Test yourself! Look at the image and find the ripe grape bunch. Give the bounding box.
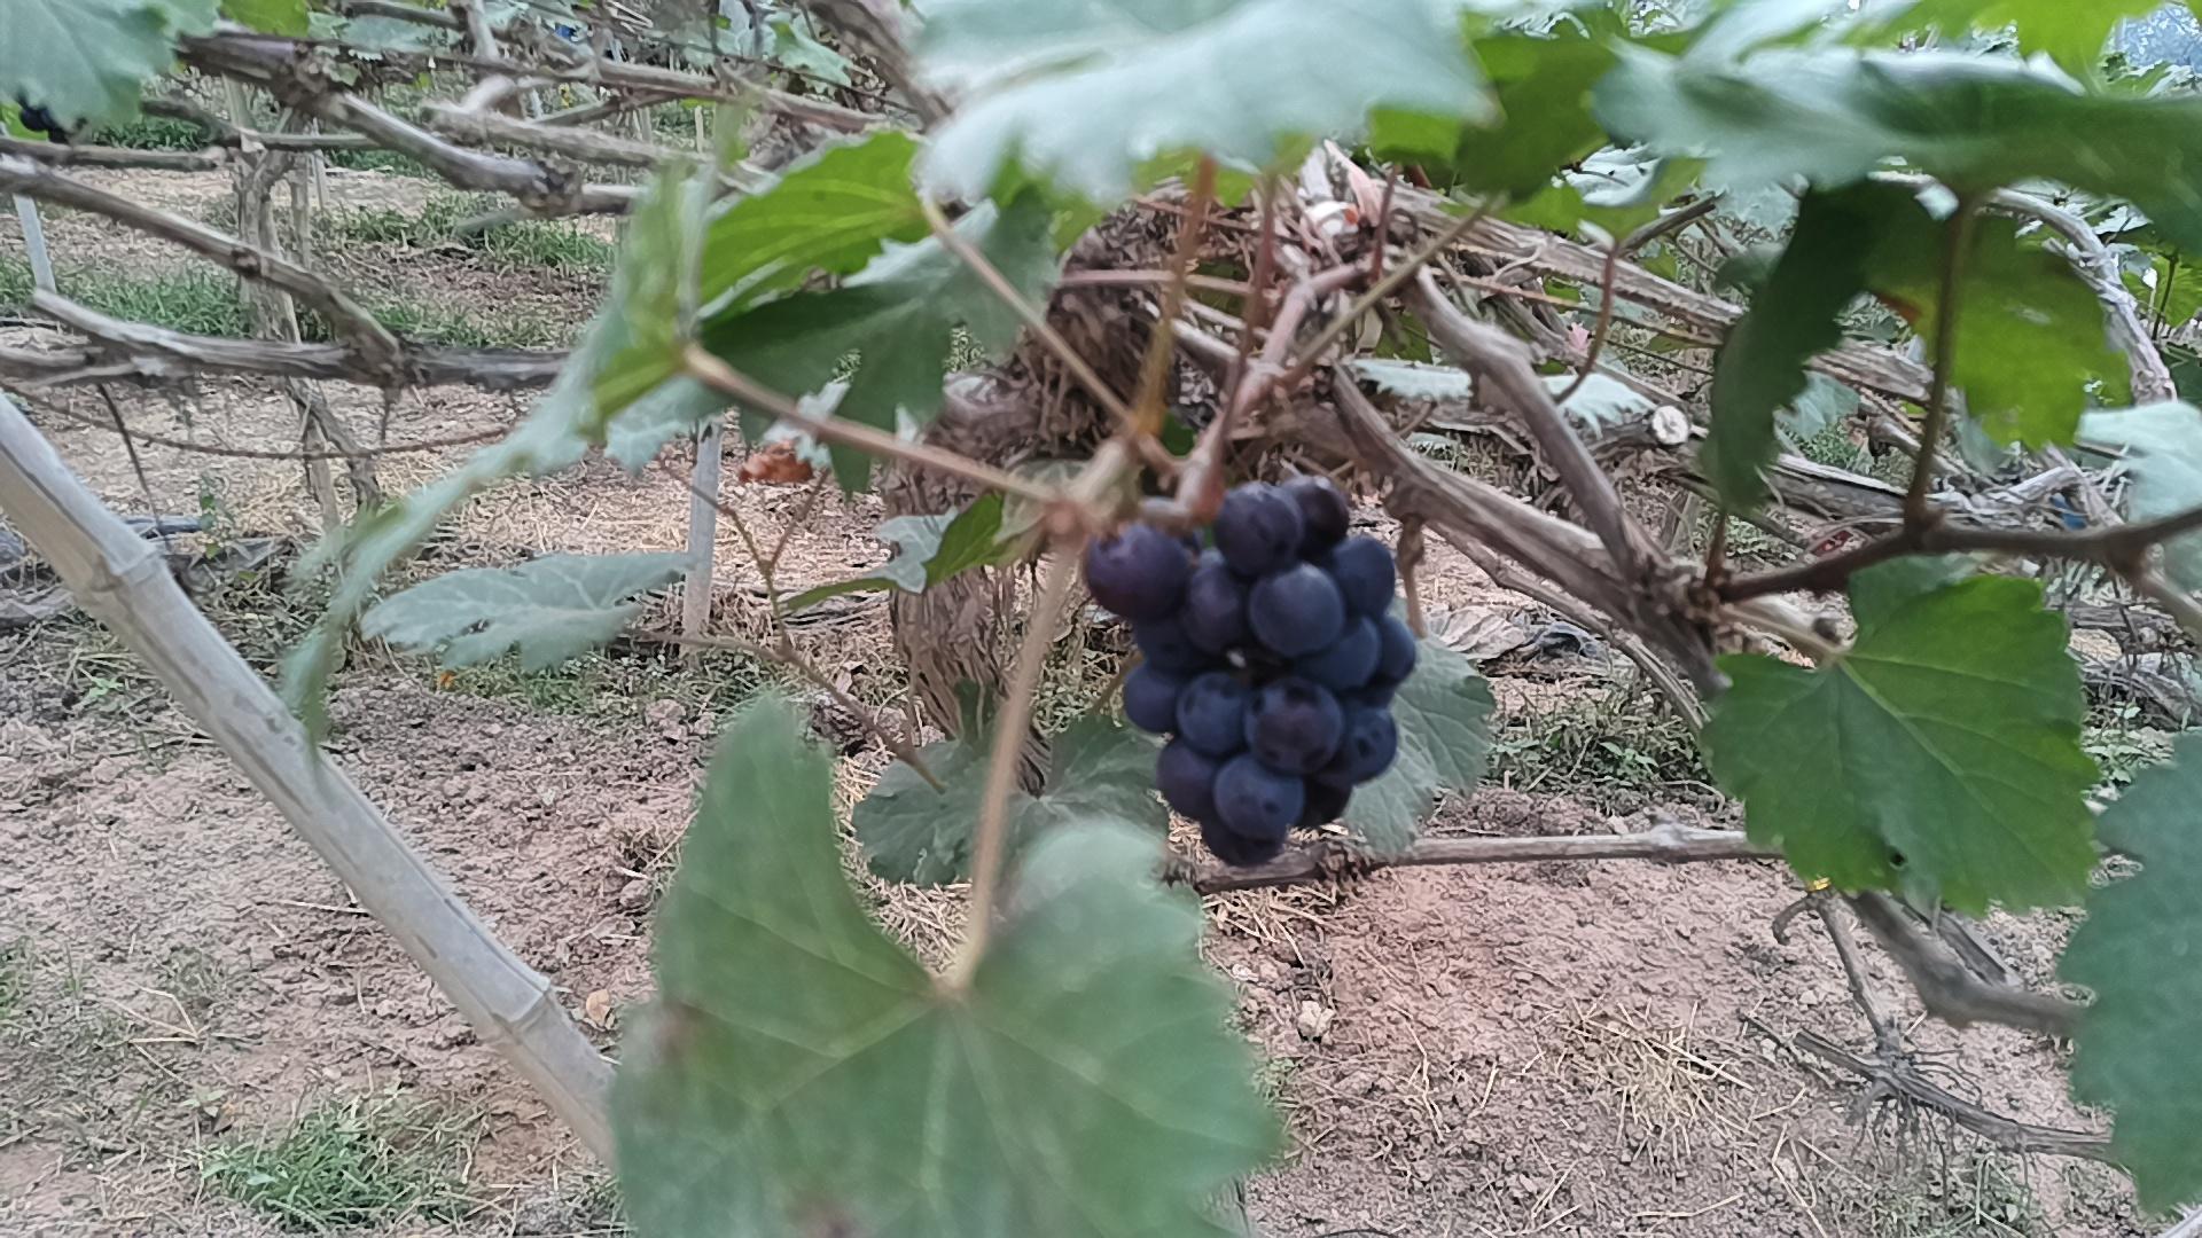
[1083,476,1415,865]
